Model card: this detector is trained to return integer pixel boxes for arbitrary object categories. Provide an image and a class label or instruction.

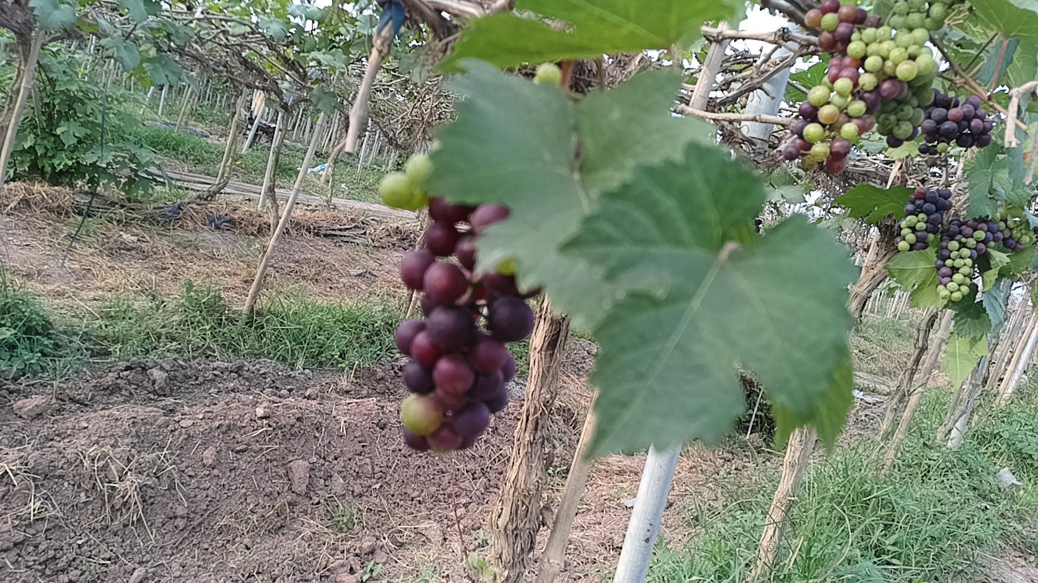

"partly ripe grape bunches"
[783,0,946,173]
[918,88,993,167]
[875,78,935,148]
[894,188,953,252]
[379,154,534,453]
[935,209,1030,302]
